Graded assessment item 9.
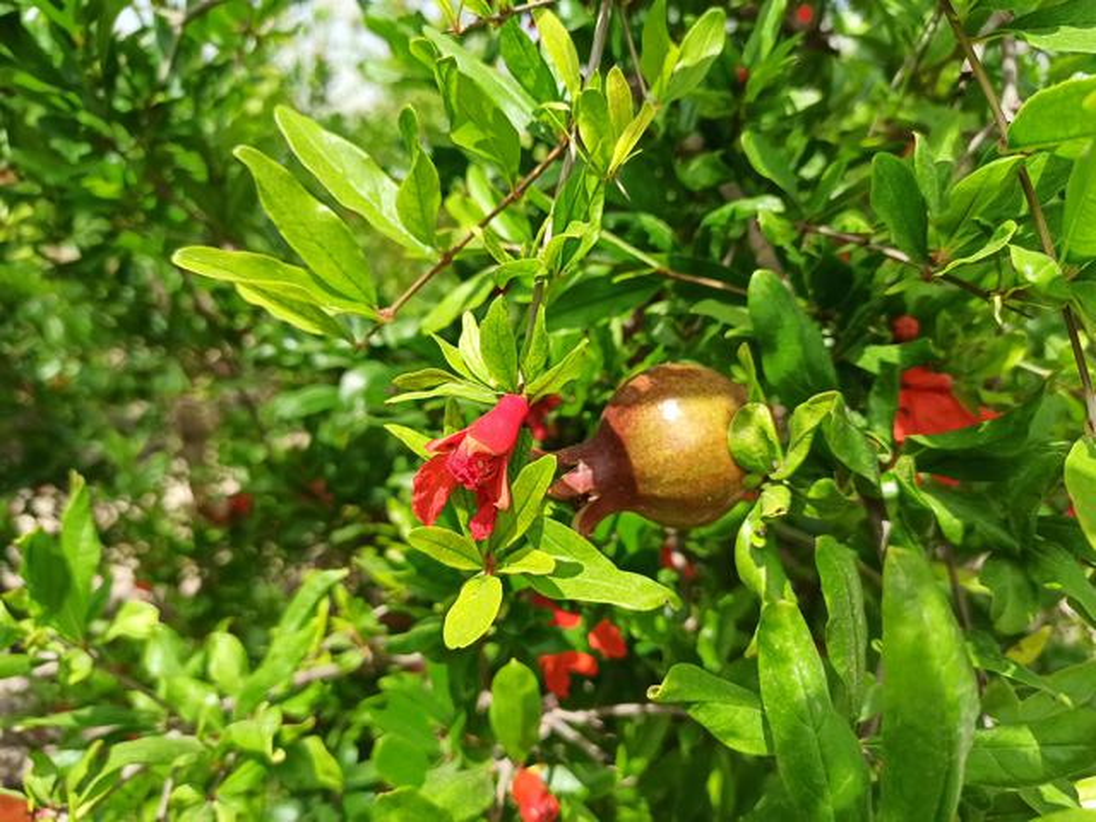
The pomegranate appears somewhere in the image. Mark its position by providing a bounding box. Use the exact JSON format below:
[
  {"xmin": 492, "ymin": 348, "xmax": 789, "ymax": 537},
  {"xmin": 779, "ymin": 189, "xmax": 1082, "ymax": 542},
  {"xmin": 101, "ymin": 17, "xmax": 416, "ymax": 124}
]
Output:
[{"xmin": 545, "ymin": 361, "xmax": 748, "ymax": 538}]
